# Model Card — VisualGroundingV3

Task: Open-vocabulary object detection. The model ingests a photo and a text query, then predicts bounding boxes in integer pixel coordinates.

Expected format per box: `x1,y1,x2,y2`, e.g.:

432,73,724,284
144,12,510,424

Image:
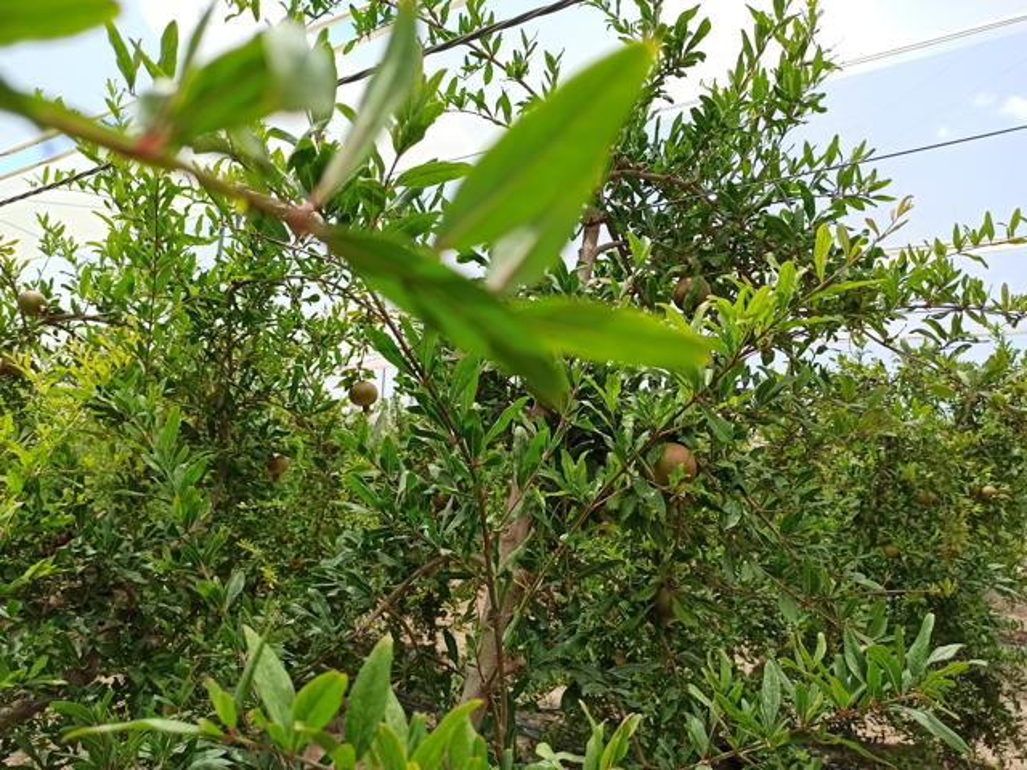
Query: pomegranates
672,276,711,313
979,484,998,500
348,380,380,414
266,457,286,481
18,290,50,316
653,443,698,486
